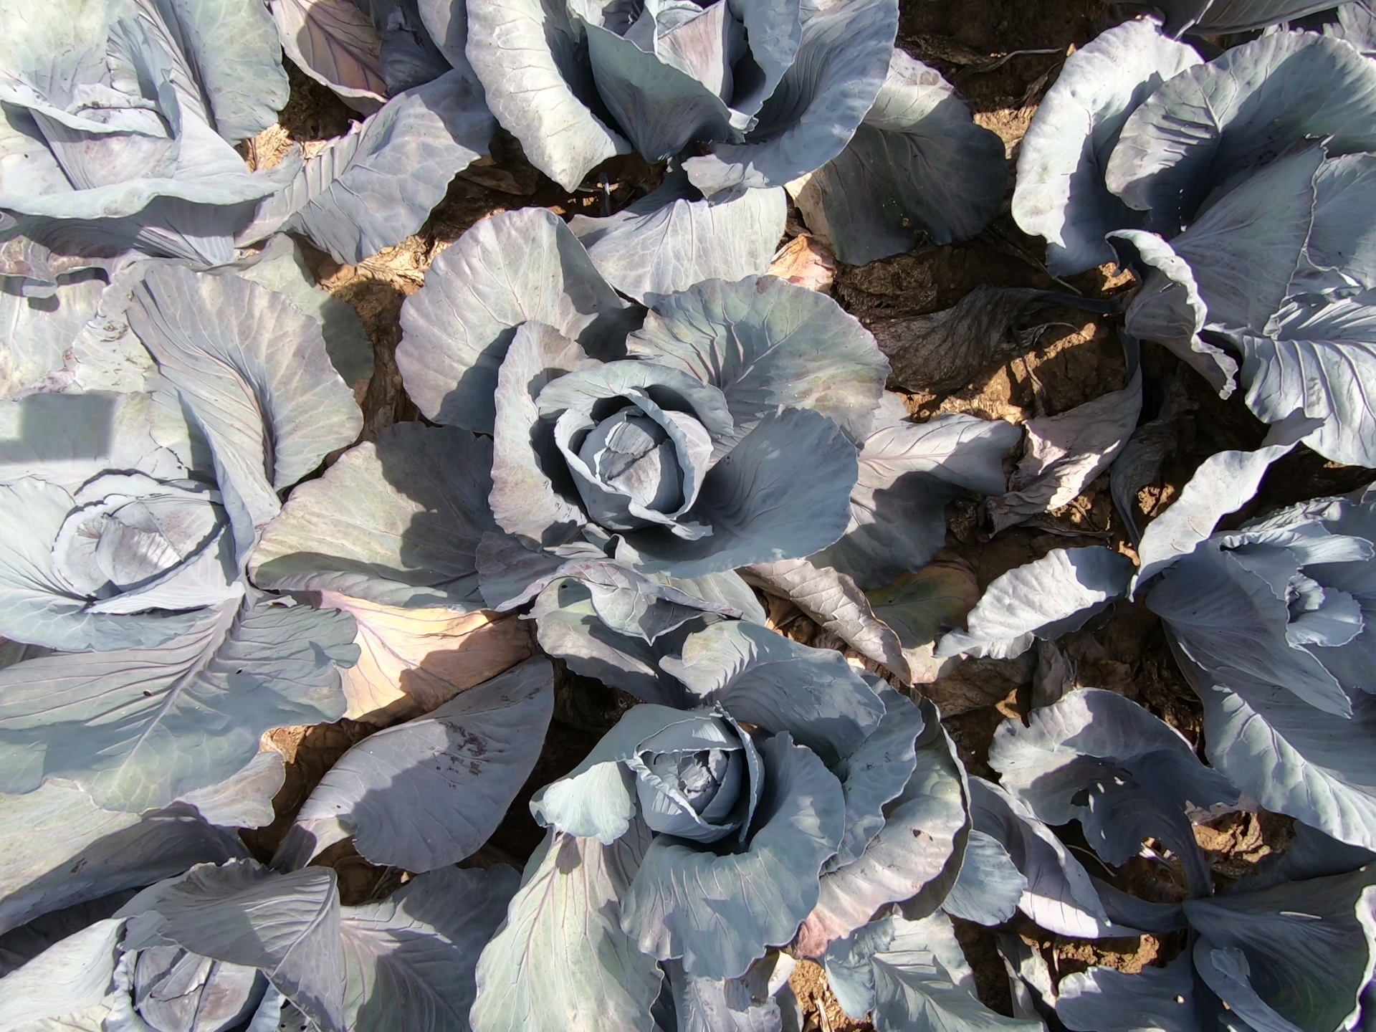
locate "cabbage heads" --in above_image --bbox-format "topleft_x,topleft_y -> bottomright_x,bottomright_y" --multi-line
95,489 -> 242,601
1188,543 -> 1299,641
57,93 -> 183,198
641,717 -> 743,829
616,4 -> 732,115
576,408 -> 709,524
136,909 -> 275,1031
